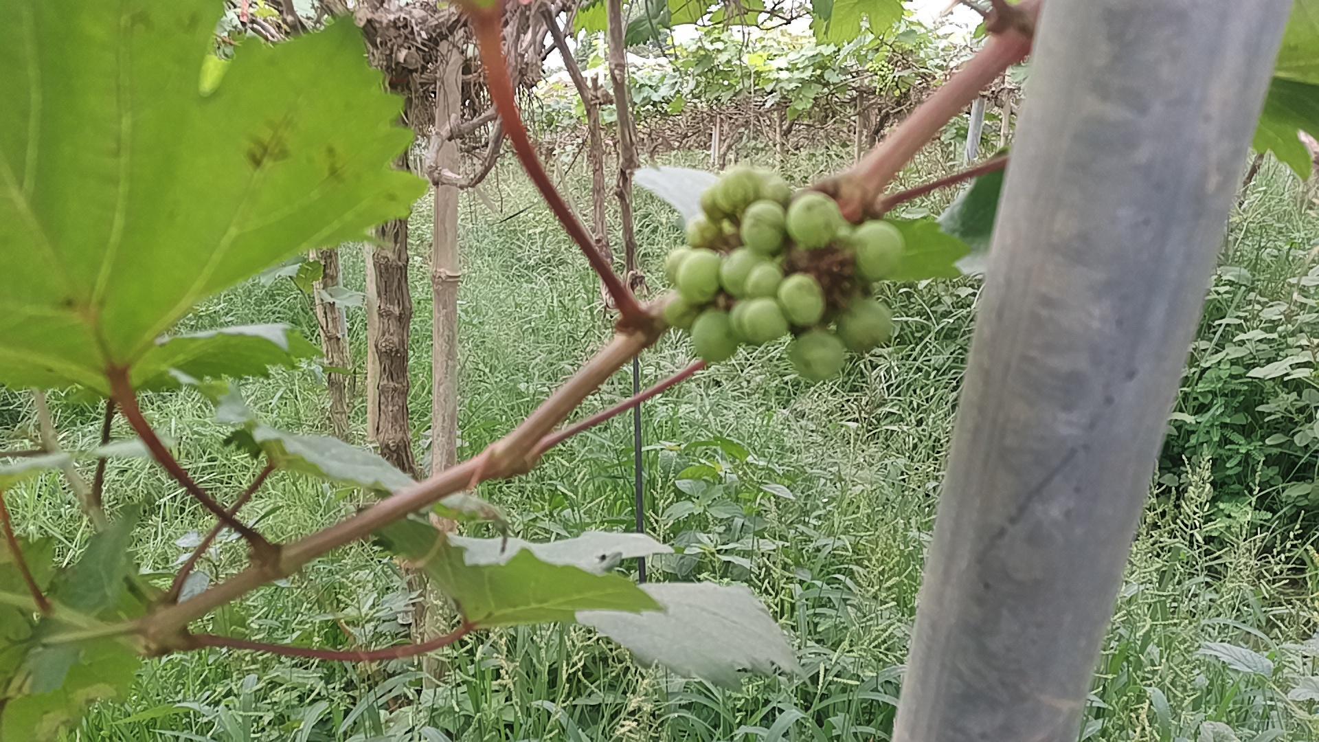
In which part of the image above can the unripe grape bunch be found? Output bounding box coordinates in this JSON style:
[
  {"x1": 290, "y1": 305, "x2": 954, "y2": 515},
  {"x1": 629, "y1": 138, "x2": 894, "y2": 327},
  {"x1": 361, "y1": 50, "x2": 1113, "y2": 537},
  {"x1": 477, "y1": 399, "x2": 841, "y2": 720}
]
[{"x1": 659, "y1": 166, "x2": 905, "y2": 381}]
